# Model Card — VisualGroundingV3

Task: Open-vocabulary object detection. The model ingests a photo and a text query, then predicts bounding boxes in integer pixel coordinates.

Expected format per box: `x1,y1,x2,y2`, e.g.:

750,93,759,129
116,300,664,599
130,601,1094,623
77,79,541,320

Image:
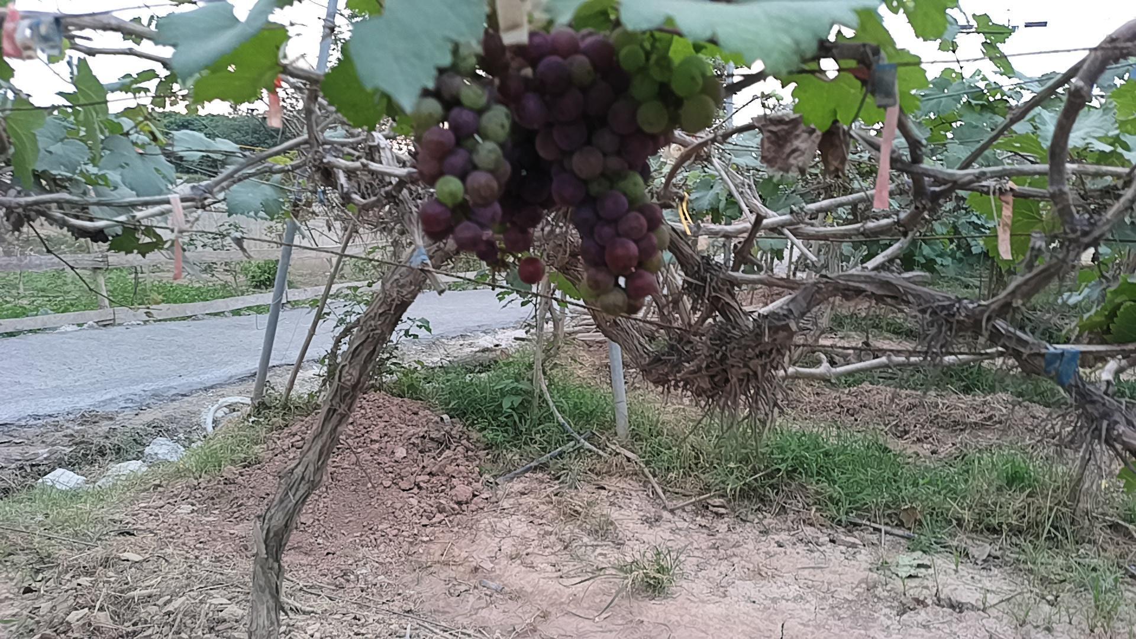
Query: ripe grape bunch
499,117,558,283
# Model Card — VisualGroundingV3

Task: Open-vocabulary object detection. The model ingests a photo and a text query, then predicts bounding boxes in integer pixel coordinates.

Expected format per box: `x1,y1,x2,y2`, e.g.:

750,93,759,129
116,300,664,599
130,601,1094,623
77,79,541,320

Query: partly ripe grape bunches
412,43,514,264
483,26,726,316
